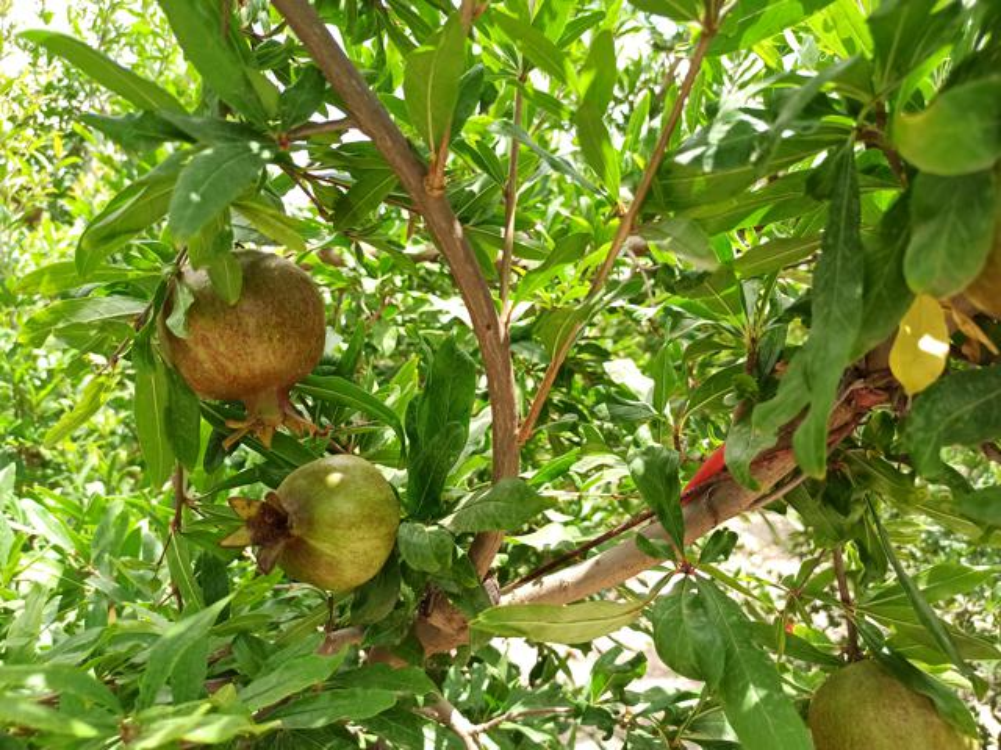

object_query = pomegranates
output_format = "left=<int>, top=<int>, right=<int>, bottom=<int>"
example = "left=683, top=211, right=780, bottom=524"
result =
left=807, top=656, right=971, bottom=750
left=217, top=455, right=400, bottom=591
left=156, top=248, right=332, bottom=450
